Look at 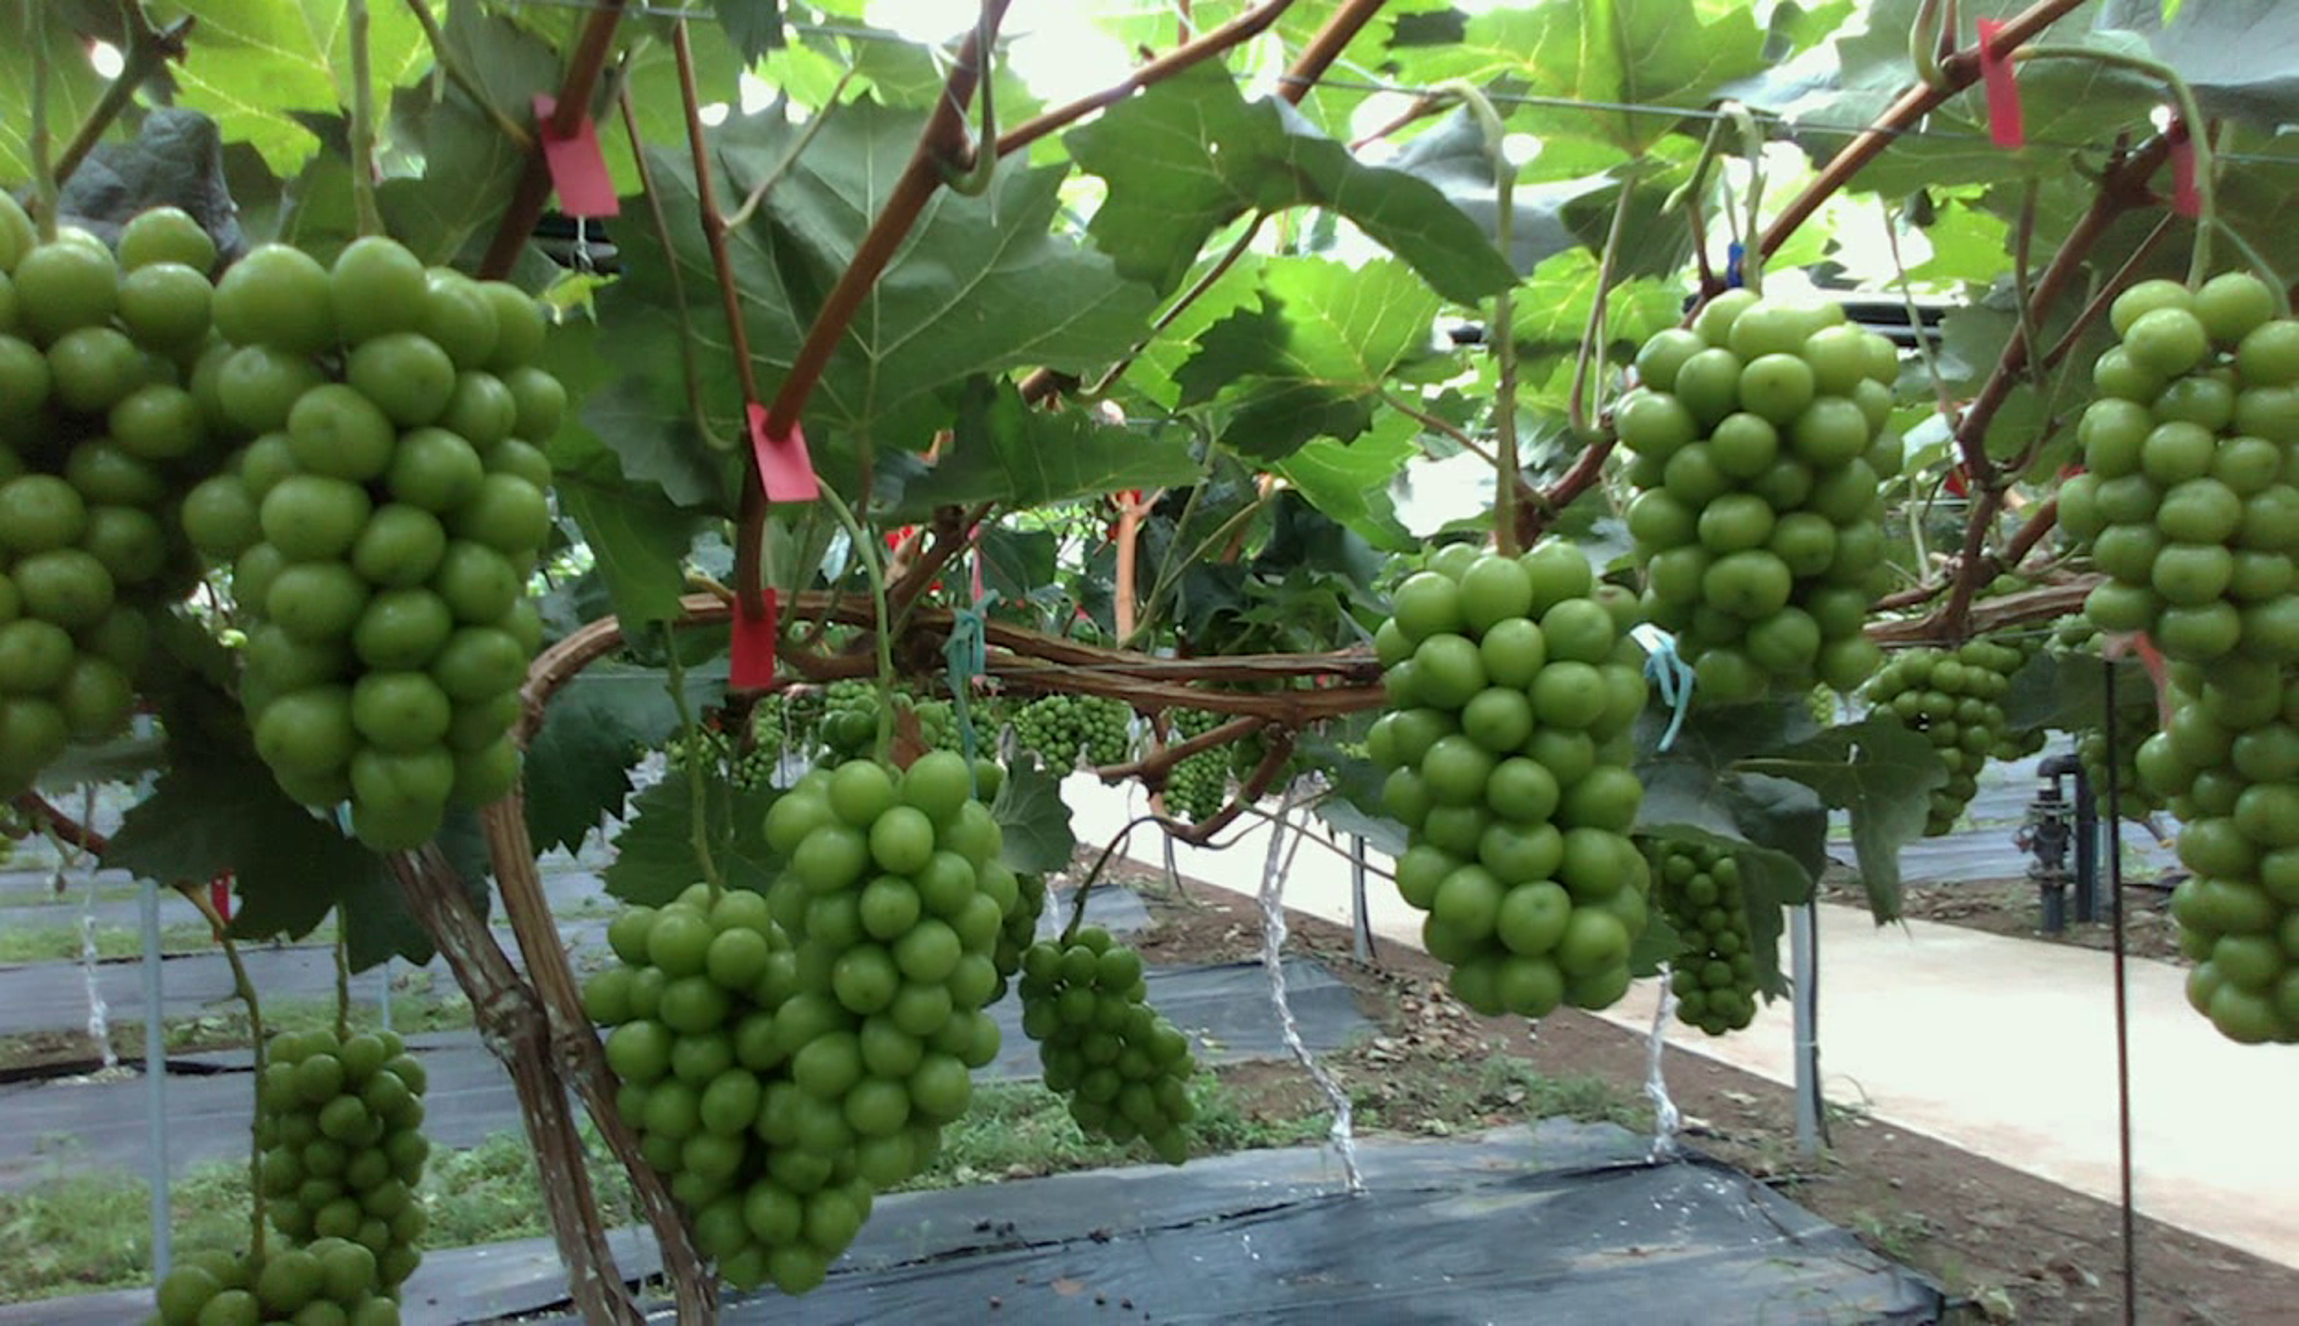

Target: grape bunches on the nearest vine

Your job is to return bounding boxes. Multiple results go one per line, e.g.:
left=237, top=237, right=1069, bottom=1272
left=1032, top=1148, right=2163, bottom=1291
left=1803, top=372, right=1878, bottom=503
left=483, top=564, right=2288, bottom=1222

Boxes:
left=1365, top=540, right=1651, bottom=1022
left=2060, top=271, right=2297, bottom=705
left=146, top=1236, right=400, bottom=1324
left=2135, top=665, right=2297, bottom=1048
left=578, top=884, right=871, bottom=1295
left=763, top=748, right=1021, bottom=1193
left=1610, top=289, right=1905, bottom=702
left=175, top=234, right=569, bottom=855
left=0, top=192, right=243, bottom=799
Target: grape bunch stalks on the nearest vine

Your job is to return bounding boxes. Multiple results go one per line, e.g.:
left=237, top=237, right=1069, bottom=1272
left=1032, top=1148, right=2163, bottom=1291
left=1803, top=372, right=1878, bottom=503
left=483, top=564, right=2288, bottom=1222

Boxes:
left=1732, top=107, right=1763, bottom=287
left=661, top=630, right=722, bottom=895
left=2036, top=44, right=2214, bottom=287
left=64, top=818, right=267, bottom=1287
left=818, top=471, right=892, bottom=766
left=343, top=0, right=379, bottom=232
left=22, top=0, right=59, bottom=238
left=1437, top=83, right=1518, bottom=562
